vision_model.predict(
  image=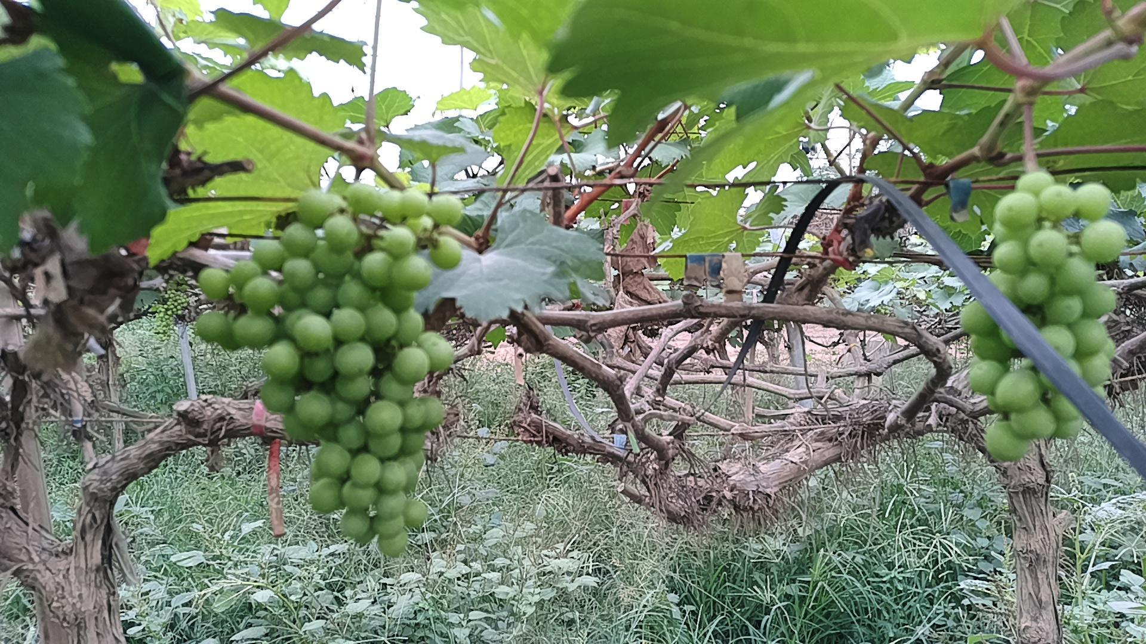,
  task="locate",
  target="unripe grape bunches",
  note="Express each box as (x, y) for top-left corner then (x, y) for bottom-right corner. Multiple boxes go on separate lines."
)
(196, 185), (463, 556)
(959, 172), (1126, 462)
